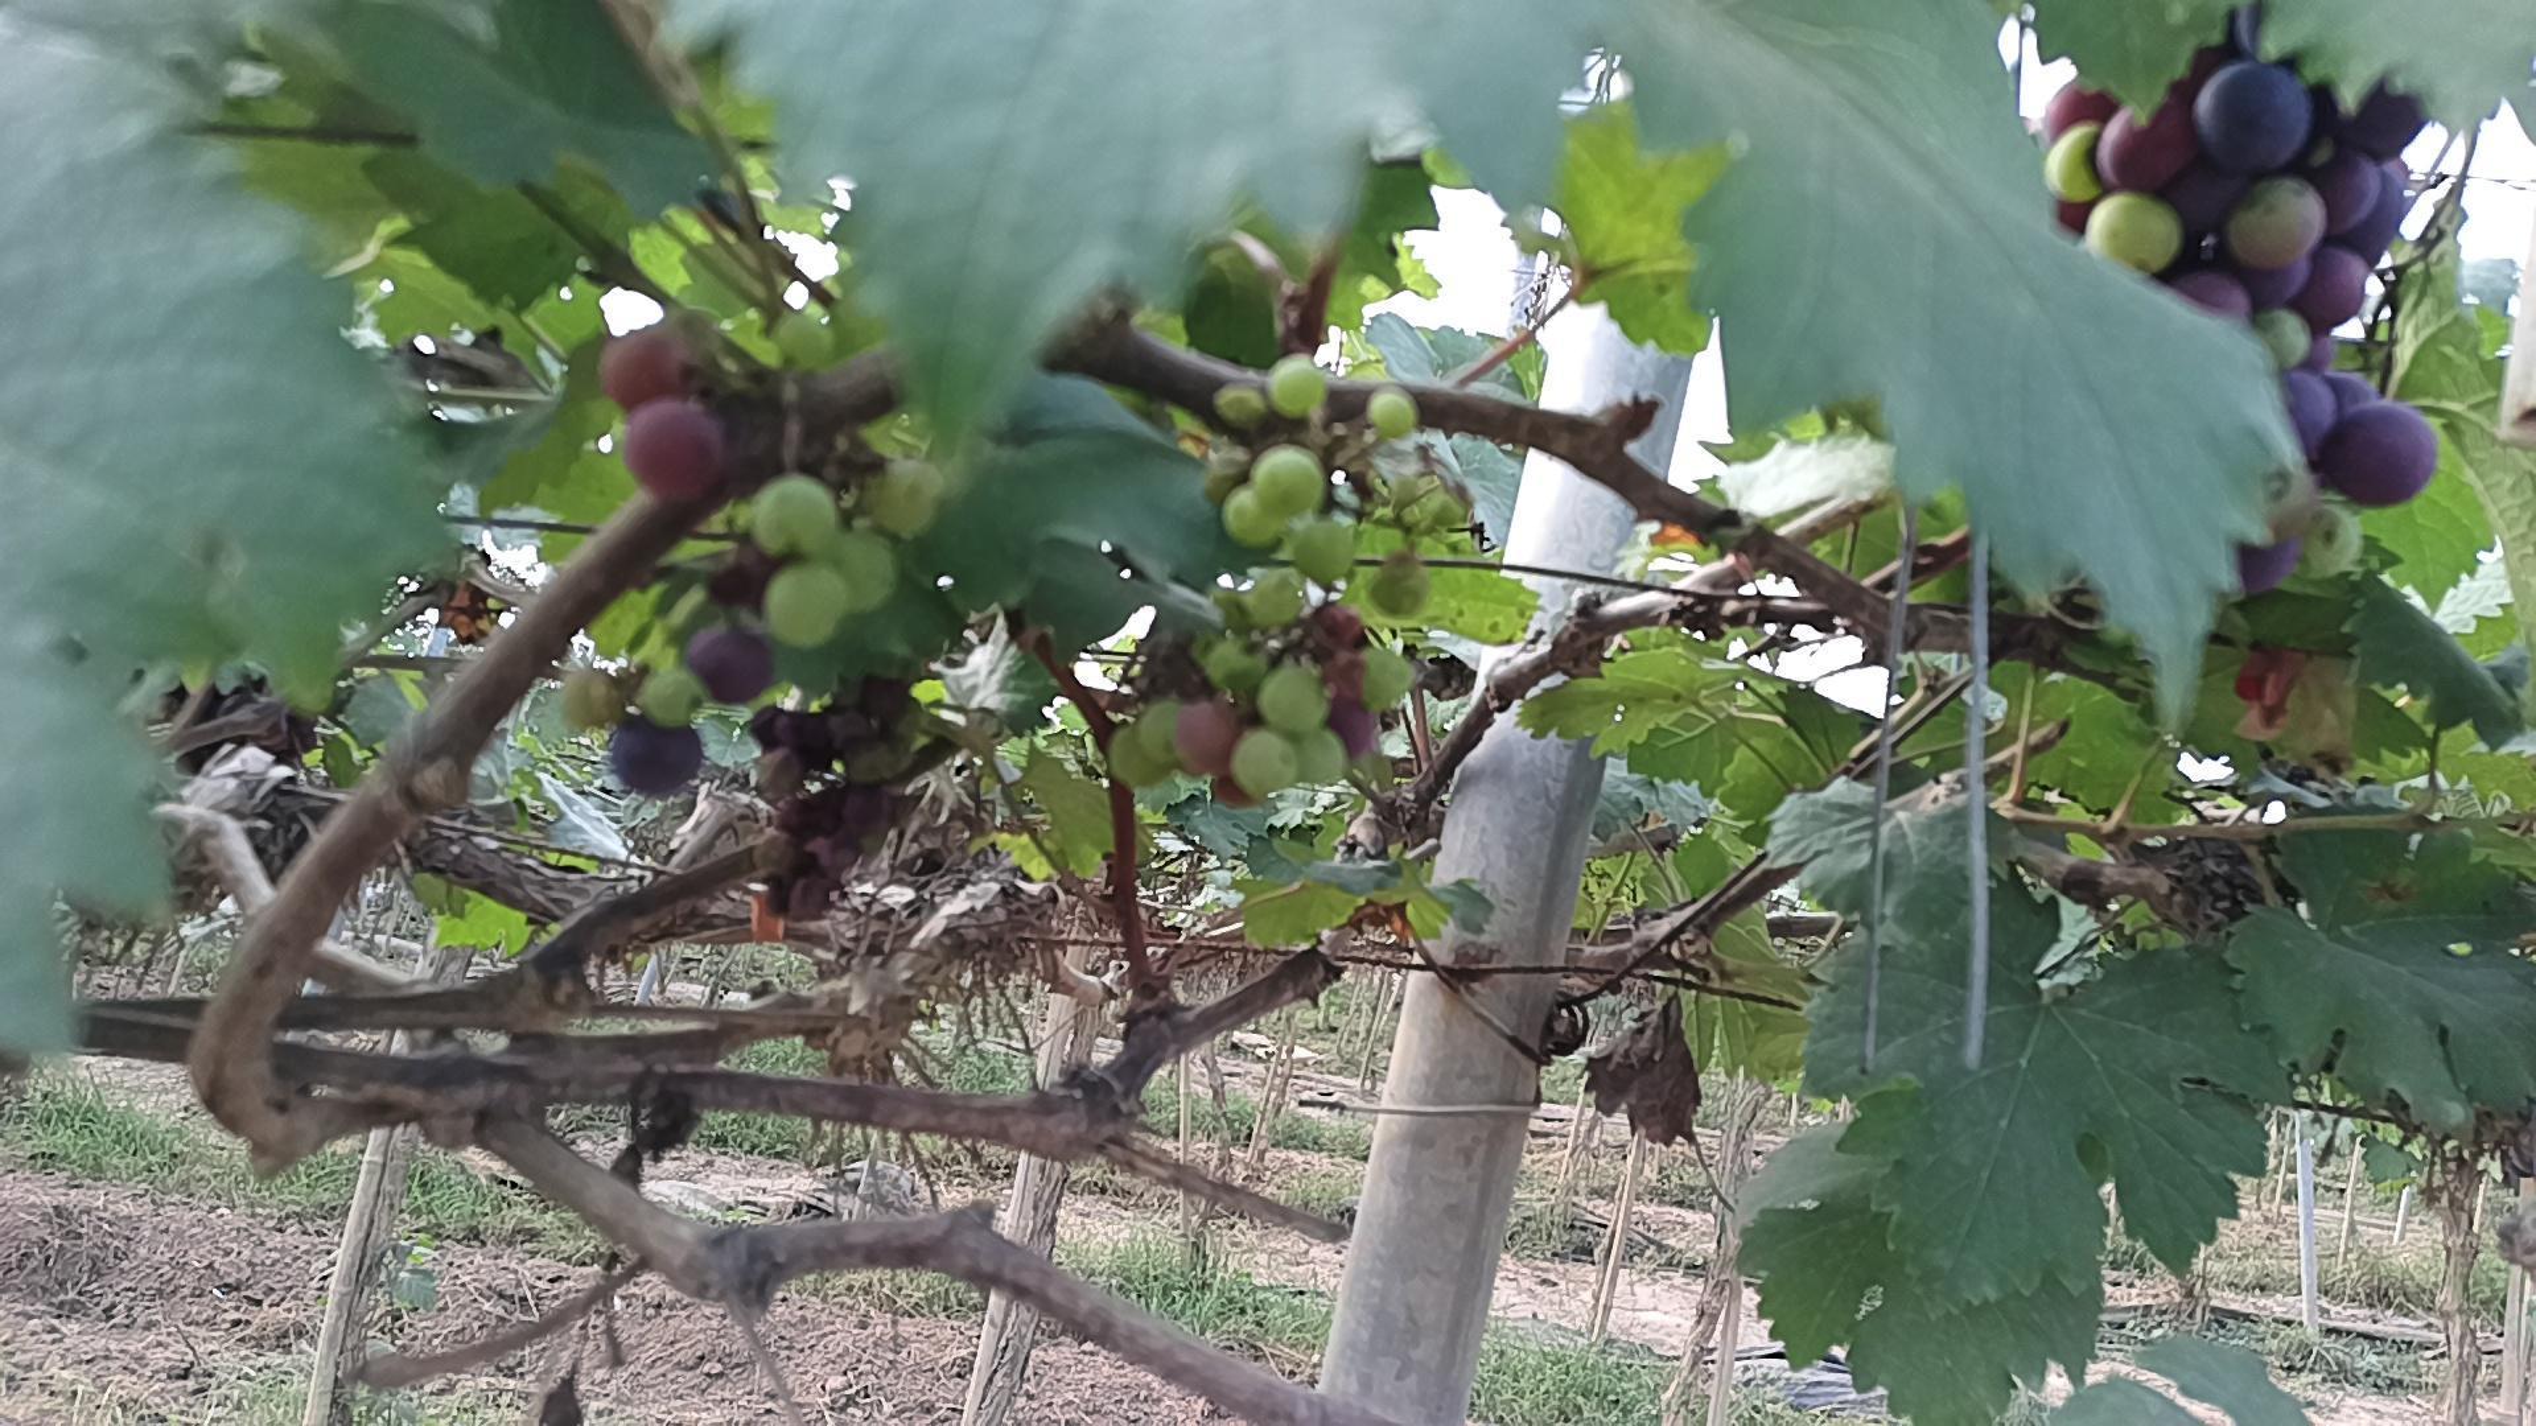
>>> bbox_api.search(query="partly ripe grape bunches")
[559,310,946,795]
[749,676,925,922]
[2042,34,2438,597]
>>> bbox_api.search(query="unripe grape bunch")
[1106,354,1471,809]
